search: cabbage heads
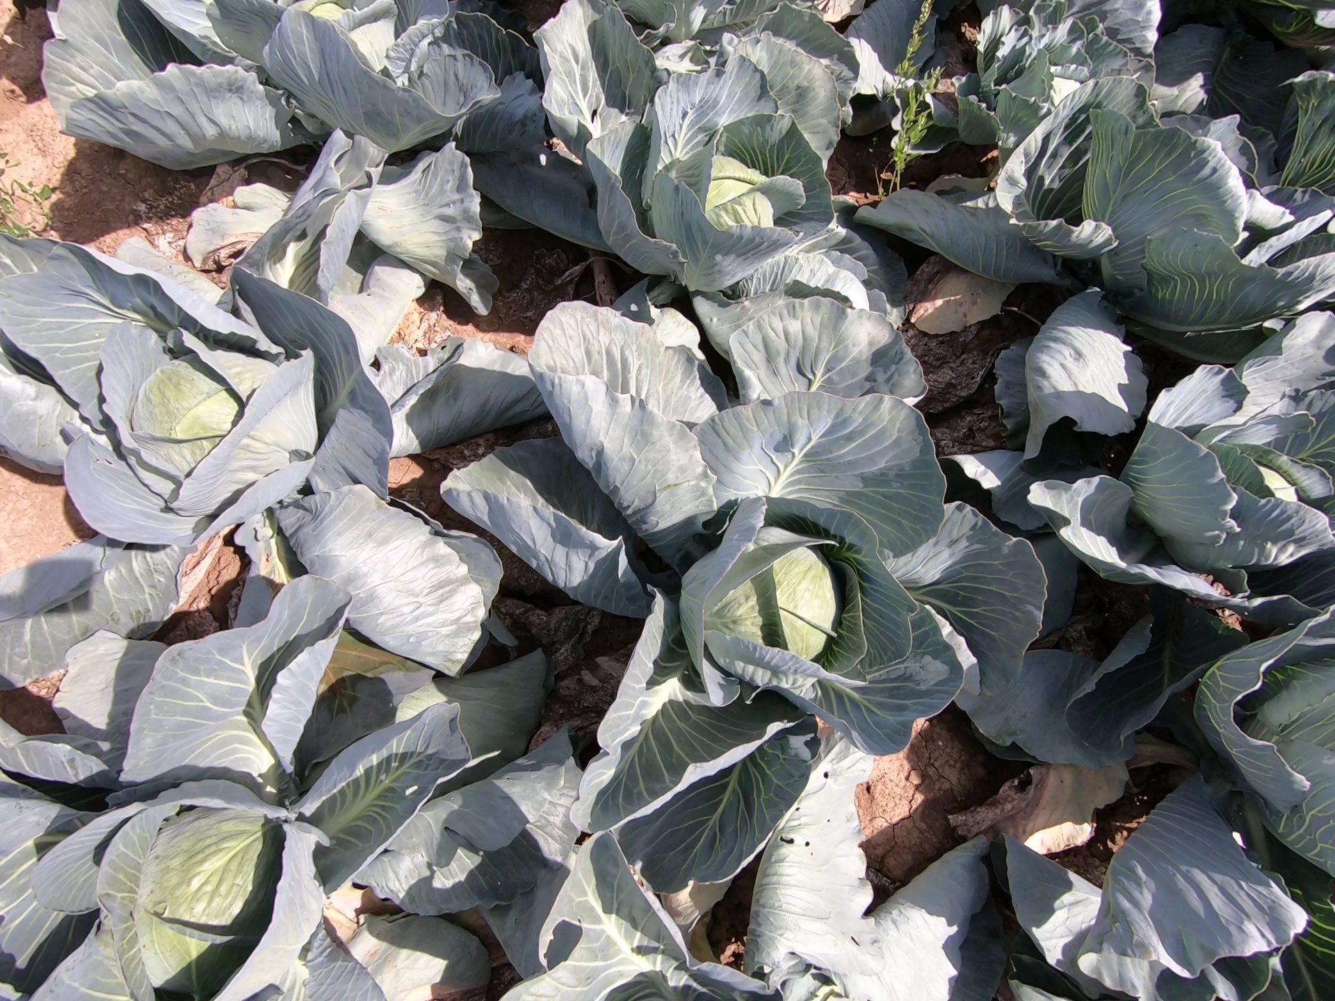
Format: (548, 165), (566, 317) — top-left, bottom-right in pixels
(280, 1), (385, 83)
(653, 153), (777, 272)
(1212, 461), (1304, 526)
(132, 351), (311, 504)
(97, 802), (308, 998)
(684, 527), (843, 681)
